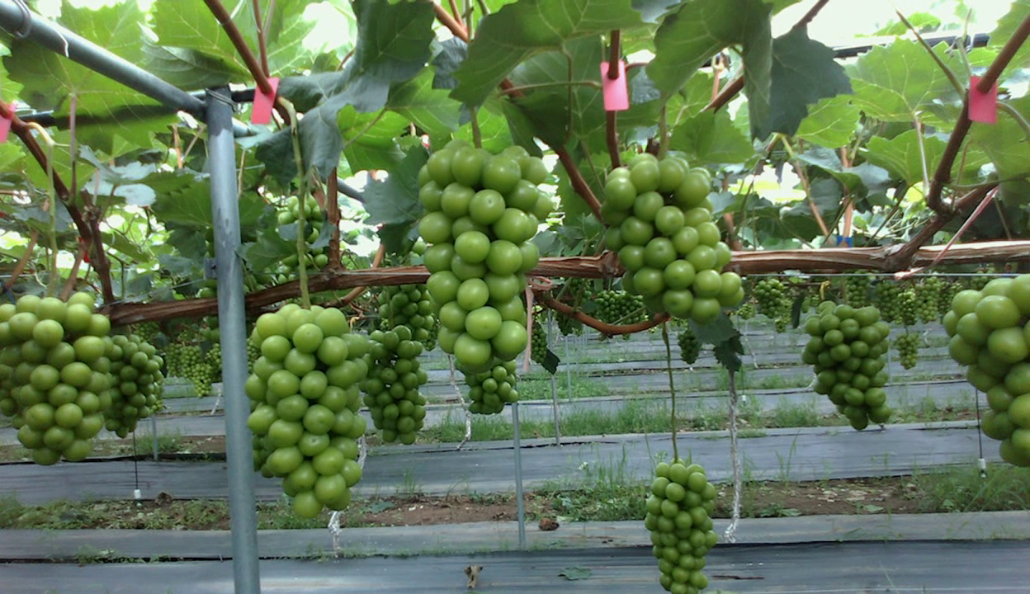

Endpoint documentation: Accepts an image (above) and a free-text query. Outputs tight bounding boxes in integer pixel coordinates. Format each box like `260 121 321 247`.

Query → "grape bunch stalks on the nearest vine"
22 122 59 297
997 101 1029 147
468 107 482 148
276 95 311 309
657 91 668 162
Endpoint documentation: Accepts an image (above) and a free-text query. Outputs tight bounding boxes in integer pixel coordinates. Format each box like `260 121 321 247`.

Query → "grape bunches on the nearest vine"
599 153 744 325
0 292 114 465
418 140 554 374
943 274 1029 468
244 303 368 520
